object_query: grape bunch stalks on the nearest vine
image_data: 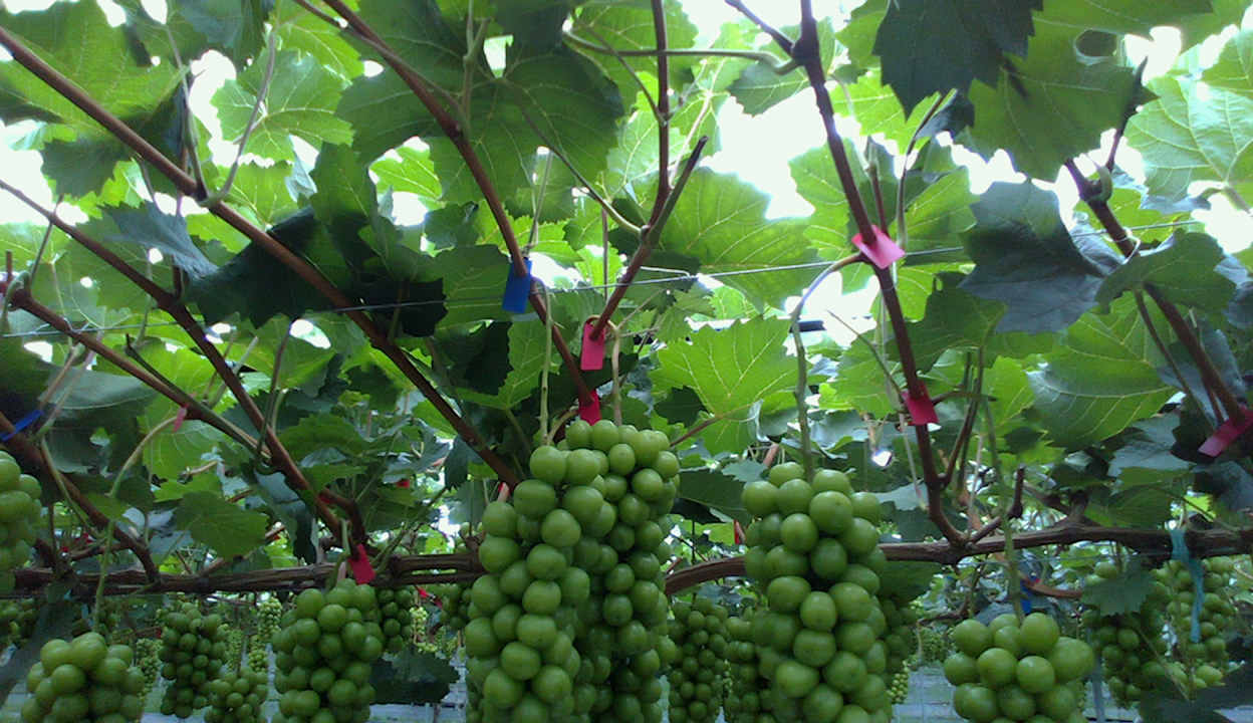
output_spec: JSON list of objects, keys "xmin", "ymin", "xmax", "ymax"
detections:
[
  {"xmin": 324, "ymin": 521, "xmax": 350, "ymax": 592},
  {"xmin": 789, "ymin": 252, "xmax": 863, "ymax": 485},
  {"xmin": 606, "ymin": 319, "xmax": 622, "ymax": 427},
  {"xmin": 930, "ymin": 391, "xmax": 1026, "ymax": 625},
  {"xmin": 90, "ymin": 416, "xmax": 176, "ymax": 632},
  {"xmin": 534, "ymin": 276, "xmax": 552, "ymax": 444}
]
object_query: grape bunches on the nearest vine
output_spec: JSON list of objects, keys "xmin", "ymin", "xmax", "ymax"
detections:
[
  {"xmin": 465, "ymin": 444, "xmax": 615, "ymax": 722},
  {"xmin": 944, "ymin": 613, "xmax": 1094, "ymax": 722},
  {"xmin": 557, "ymin": 420, "xmax": 681, "ymax": 655},
  {"xmin": 270, "ymin": 578, "xmax": 384, "ymax": 722},
  {"xmin": 743, "ymin": 462, "xmax": 894, "ymax": 722},
  {"xmin": 572, "ymin": 617, "xmax": 676, "ymax": 722},
  {"xmin": 20, "ymin": 632, "xmax": 147, "ymax": 722},
  {"xmin": 0, "ymin": 450, "xmax": 43, "ymax": 594}
]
